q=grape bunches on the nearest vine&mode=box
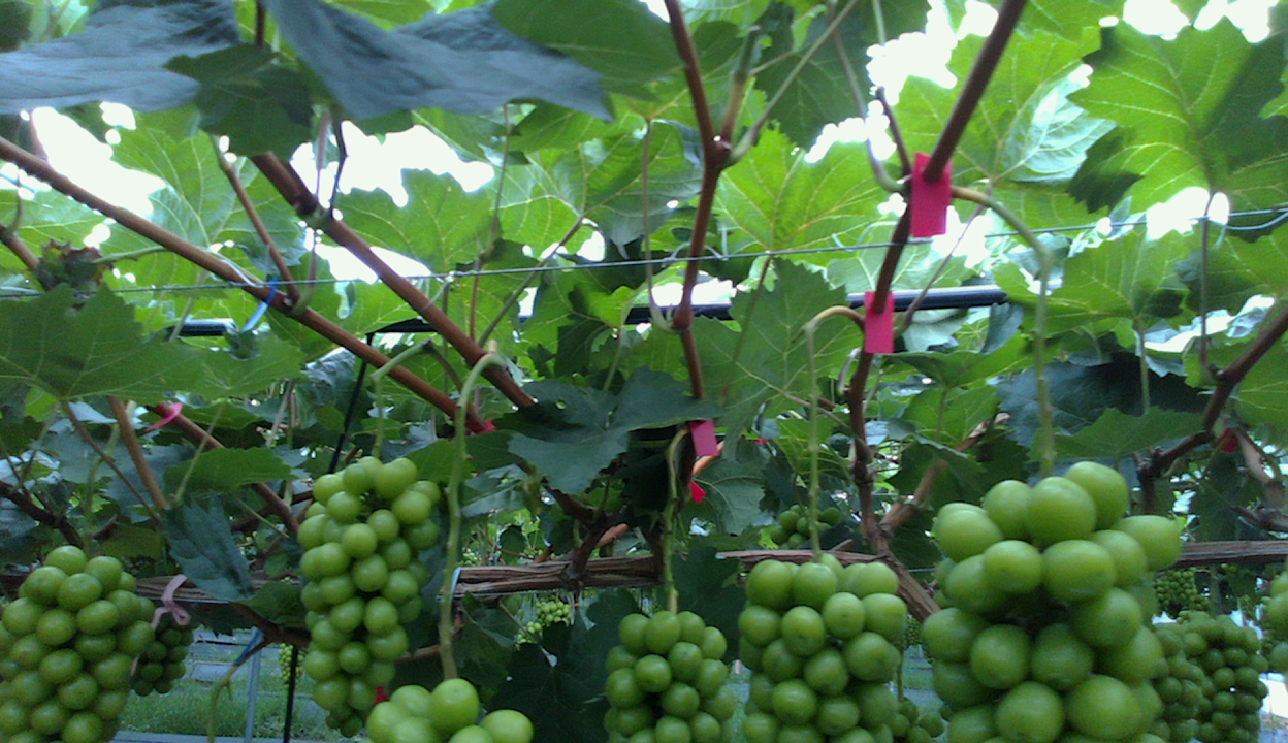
[737,553,909,742]
[1267,572,1287,670]
[603,611,735,742]
[0,544,155,742]
[922,462,1182,742]
[360,677,535,742]
[298,457,441,711]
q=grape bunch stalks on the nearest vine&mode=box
[369,341,428,459]
[952,185,1052,478]
[440,355,506,680]
[806,304,863,561]
[662,427,688,613]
